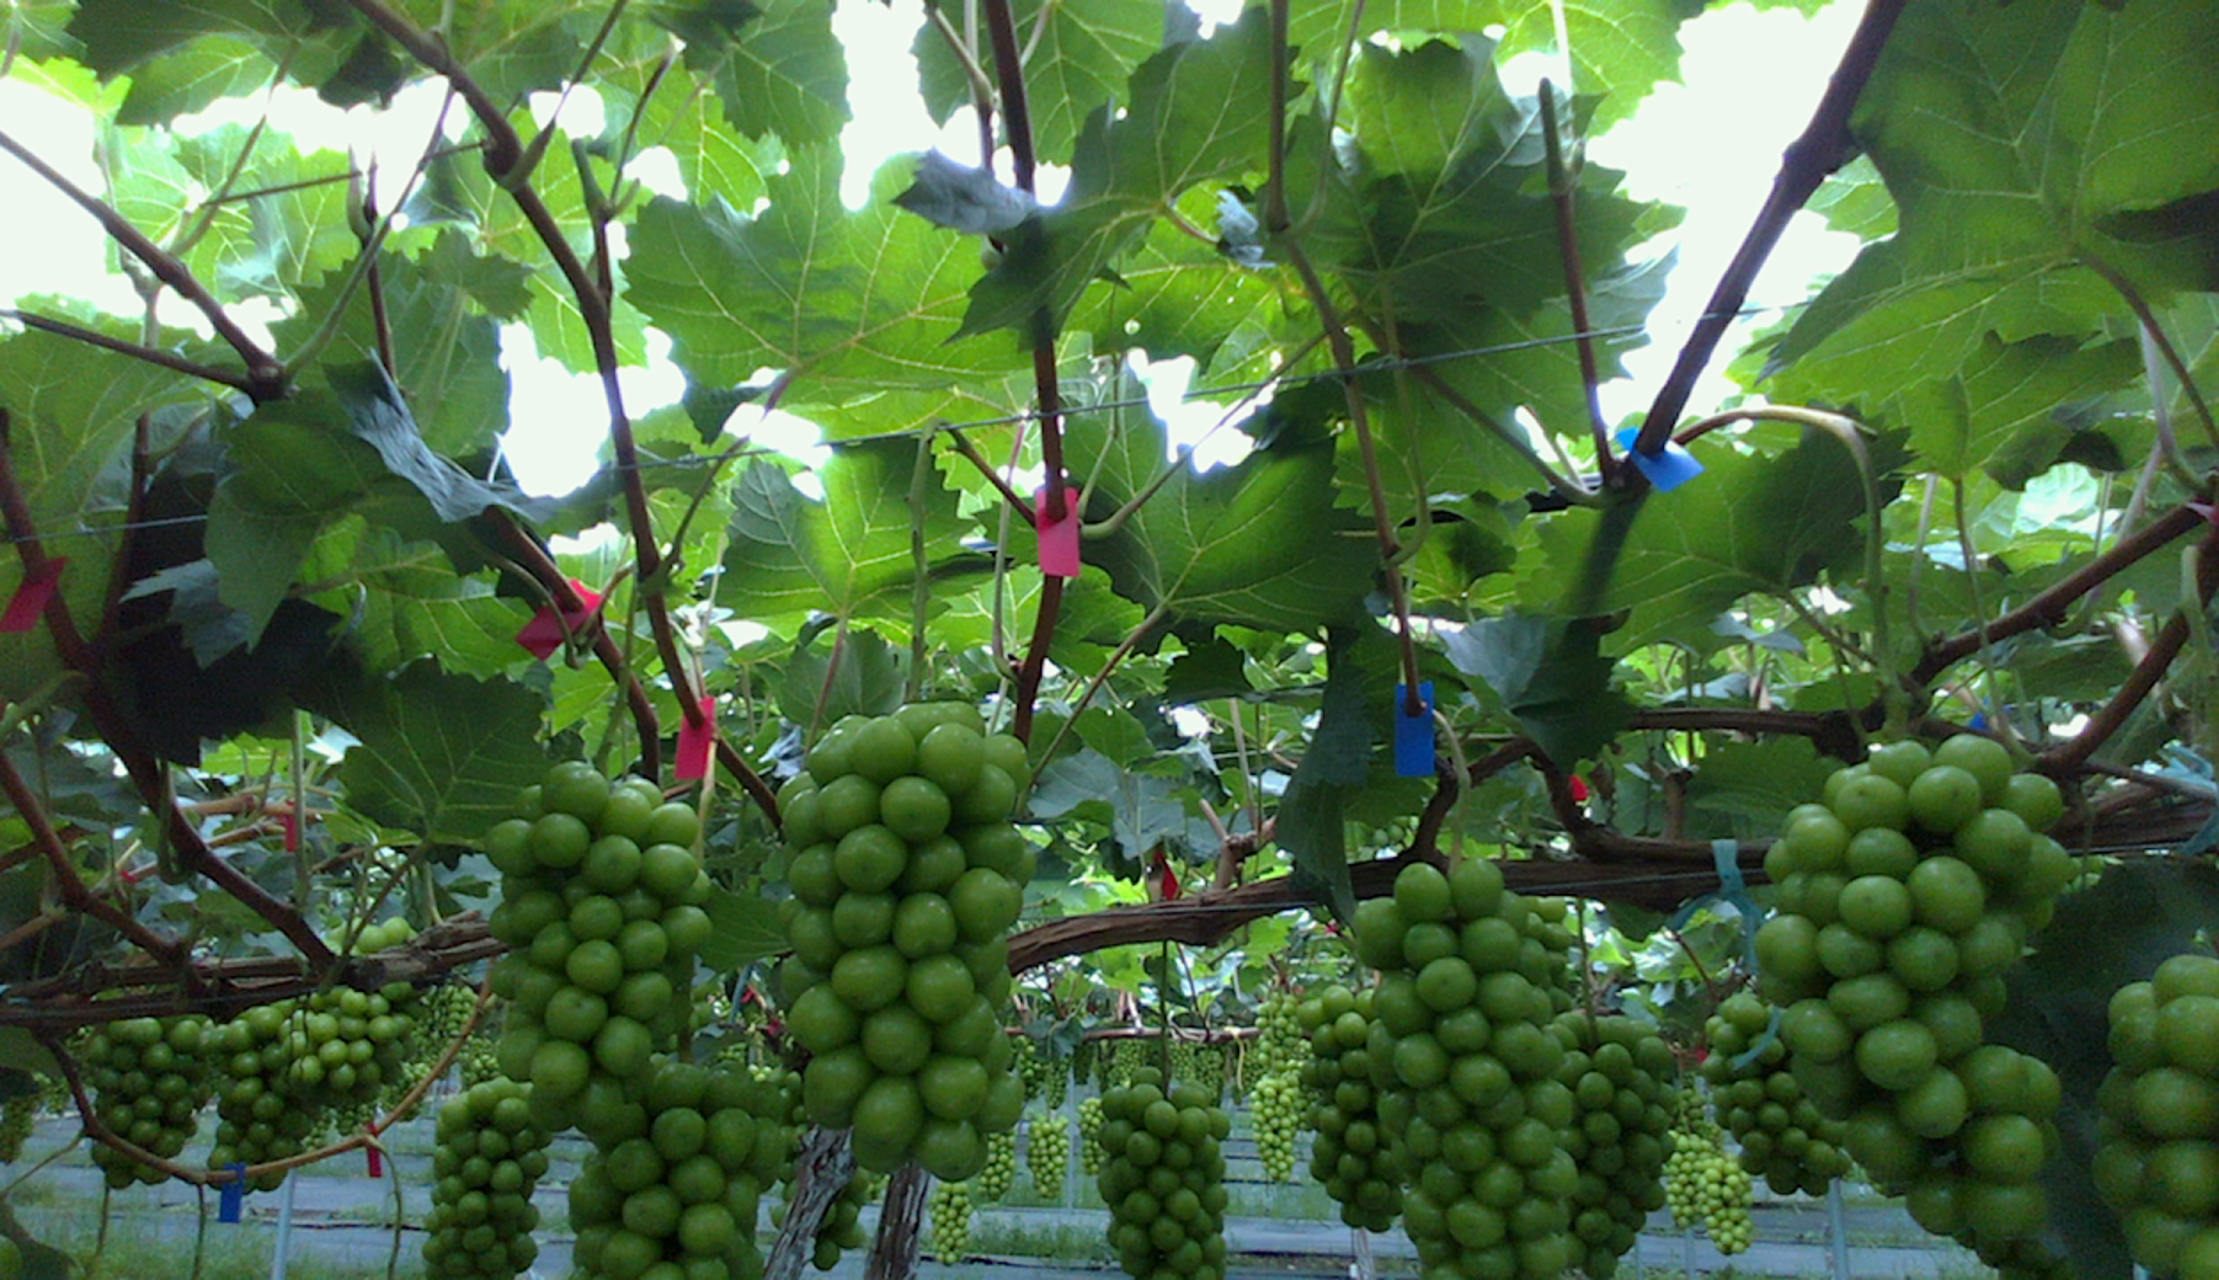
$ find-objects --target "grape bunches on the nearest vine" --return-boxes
[768,699,1035,1184]
[565,1054,788,1278]
[1751,732,2071,1243]
[480,759,713,1136]
[1351,855,1581,1278]
[2091,955,2217,1278]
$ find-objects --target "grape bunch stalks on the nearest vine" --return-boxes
[907,418,942,702]
[1433,709,1469,876]
[597,558,642,780]
[1673,402,1911,745]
